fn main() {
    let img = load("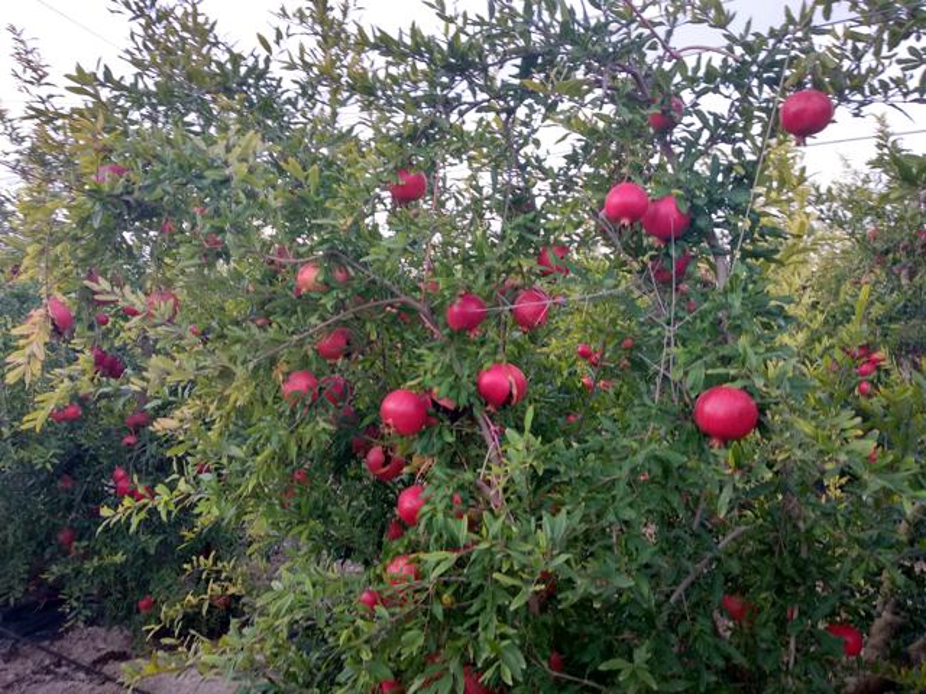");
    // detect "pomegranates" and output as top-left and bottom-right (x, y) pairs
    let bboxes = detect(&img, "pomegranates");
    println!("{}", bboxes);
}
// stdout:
(116, 476), (133, 497)
(394, 486), (427, 526)
(858, 360), (877, 376)
(110, 467), (129, 484)
(417, 390), (456, 428)
(110, 363), (124, 377)
(389, 169), (427, 202)
(576, 344), (592, 360)
(132, 486), (155, 500)
(537, 244), (570, 276)
(366, 444), (405, 480)
(476, 361), (528, 416)
(126, 415), (139, 428)
(825, 623), (864, 656)
(58, 529), (75, 547)
(462, 665), (490, 694)
(123, 307), (140, 317)
(511, 288), (553, 333)
(137, 594), (155, 612)
(444, 294), (489, 338)
(778, 90), (833, 147)
(381, 389), (428, 437)
(352, 437), (372, 458)
(51, 409), (67, 422)
(91, 347), (107, 367)
(693, 383), (758, 450)
(146, 289), (181, 320)
(589, 353), (600, 367)
(48, 296), (72, 333)
(357, 590), (394, 612)
(647, 94), (684, 129)
(97, 163), (127, 184)
(381, 680), (404, 694)
(548, 648), (564, 672)
(868, 354), (881, 372)
(101, 354), (117, 374)
(653, 254), (690, 283)
(292, 262), (328, 296)
(580, 377), (595, 390)
(640, 194), (690, 249)
(122, 435), (137, 447)
(95, 312), (110, 327)
(64, 403), (82, 421)
(282, 370), (318, 400)
(385, 555), (420, 584)
(386, 519), (404, 541)
(136, 414), (149, 427)
(603, 182), (650, 231)
(315, 328), (347, 361)
(722, 594), (752, 623)
(858, 380), (870, 395)
(321, 376), (353, 415)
